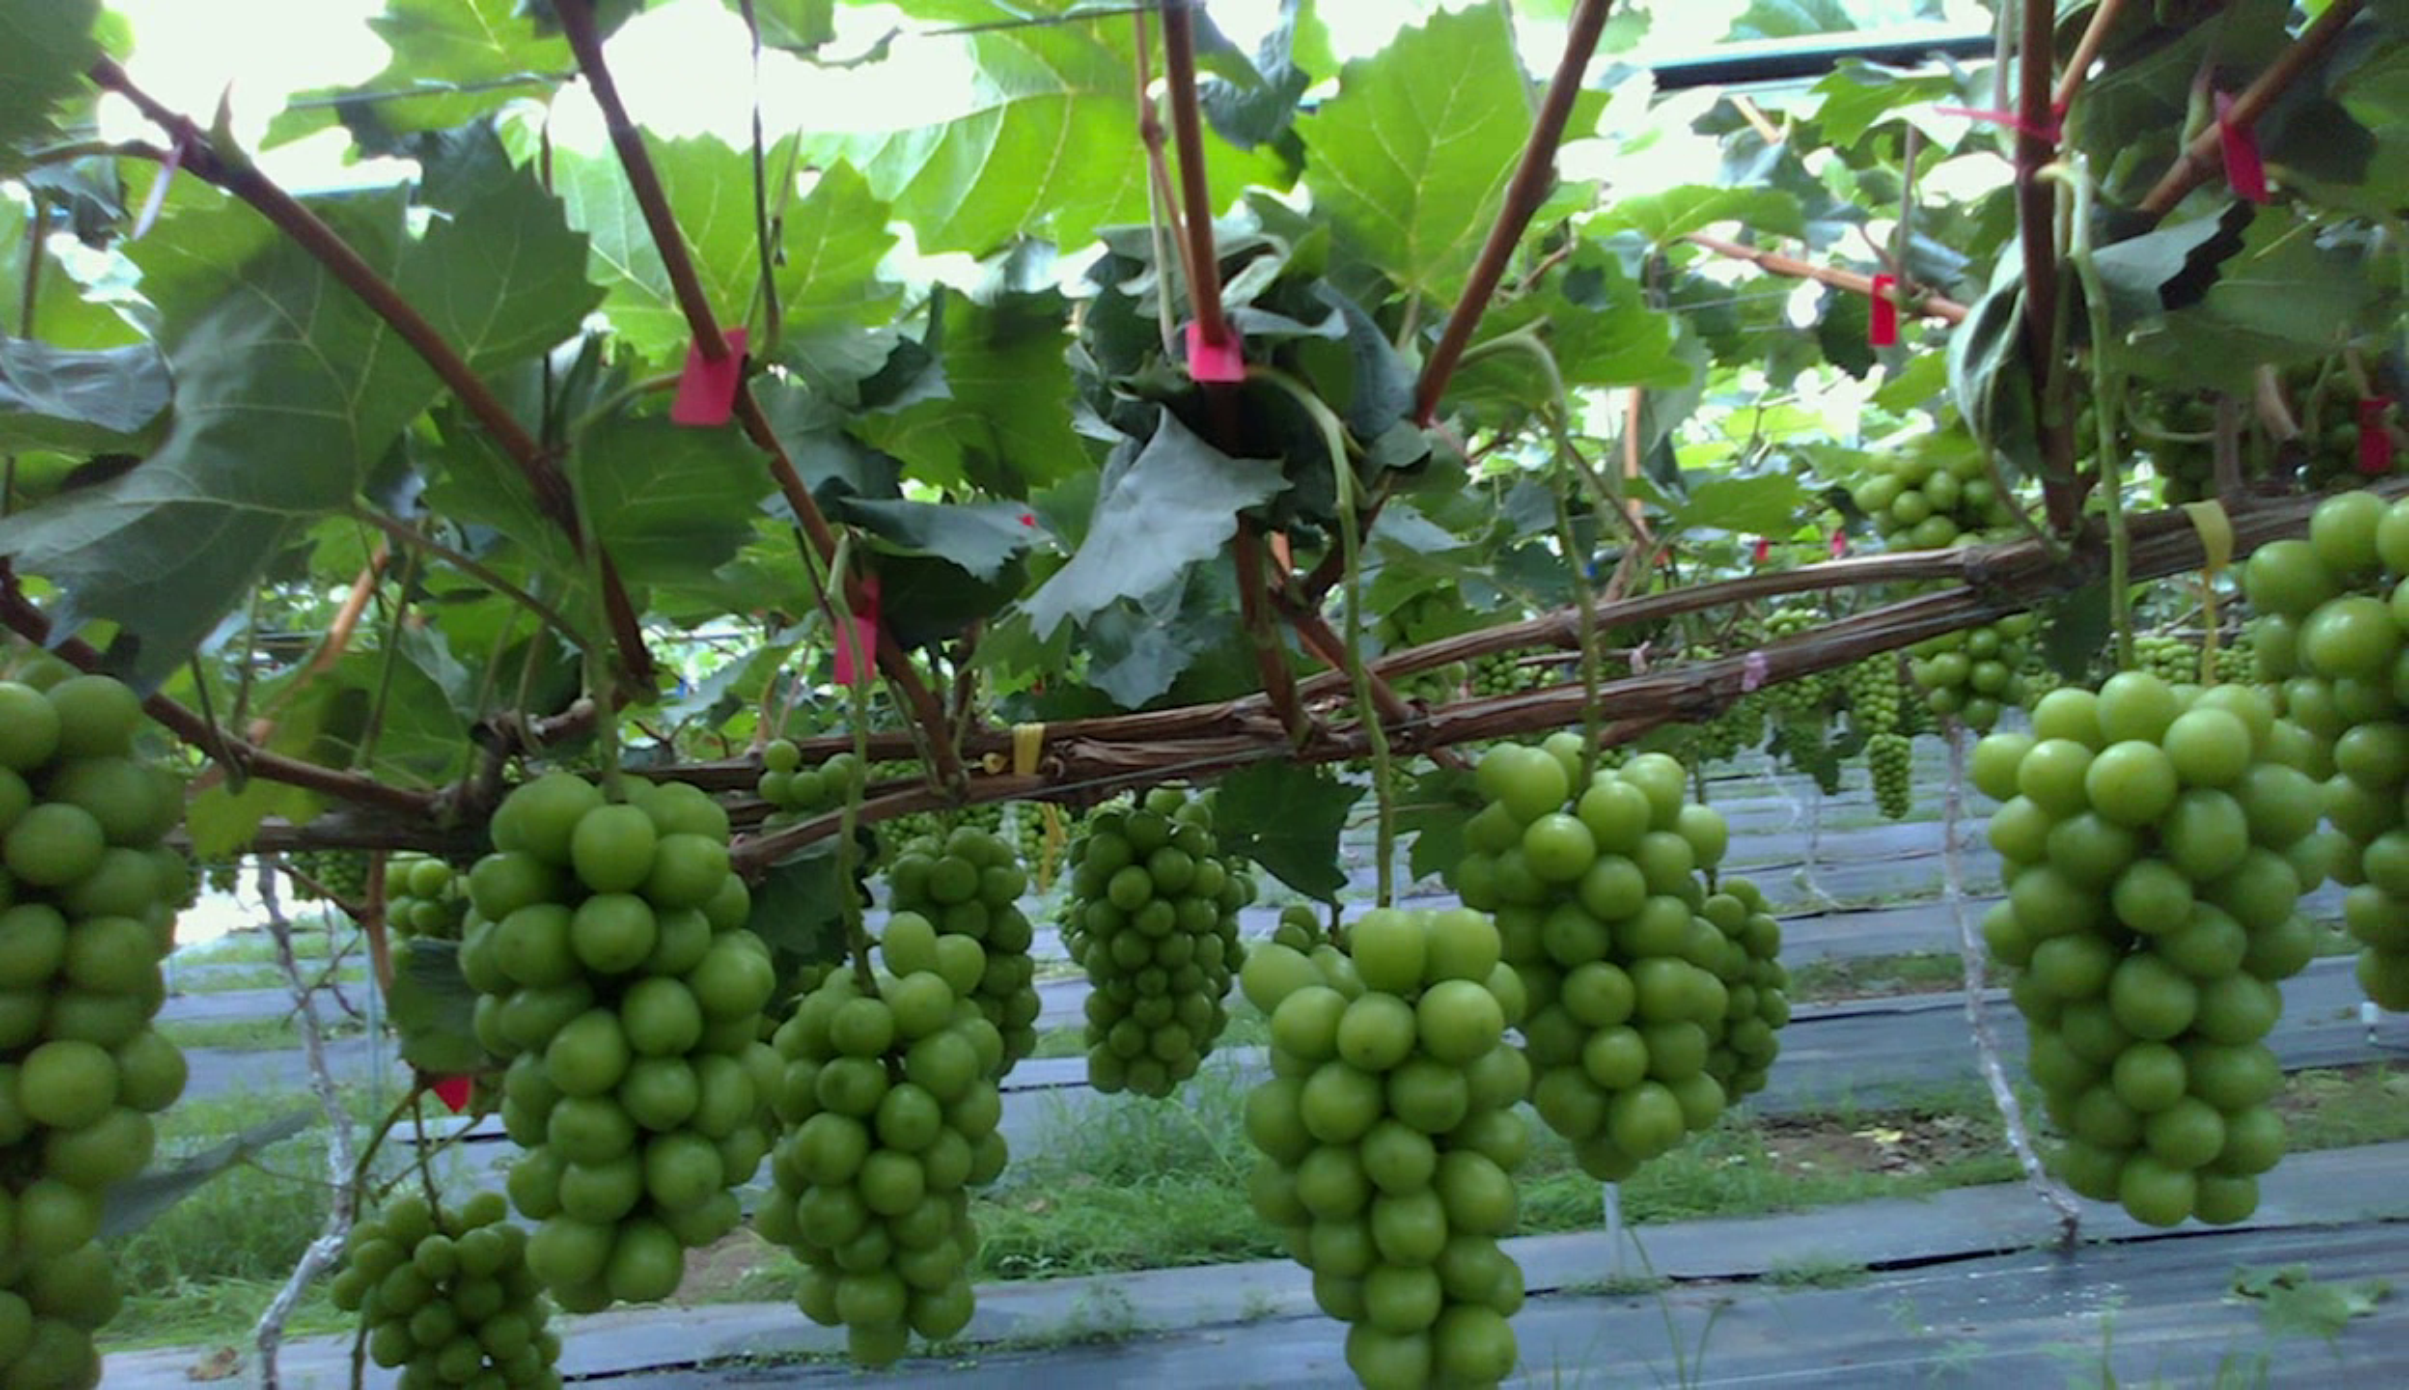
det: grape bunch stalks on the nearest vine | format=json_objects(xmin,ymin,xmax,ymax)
[
  {"xmin": 1475, "ymin": 319, "xmax": 1600, "ymax": 793},
  {"xmin": 824, "ymin": 539, "xmax": 880, "ymax": 996},
  {"xmin": 562, "ymin": 376, "xmax": 672, "ymax": 801},
  {"xmin": 2054, "ymin": 168, "xmax": 2135, "ymax": 666},
  {"xmin": 1278, "ymin": 373, "xmax": 1398, "ymax": 902}
]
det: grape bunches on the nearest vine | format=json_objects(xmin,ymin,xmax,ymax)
[
  {"xmin": 2251, "ymin": 488, "xmax": 2407, "ymax": 1010},
  {"xmin": 1452, "ymin": 730, "xmax": 1728, "ymax": 1181},
  {"xmin": 759, "ymin": 911, "xmax": 1004, "ymax": 1369},
  {"xmin": 1971, "ymin": 674, "xmax": 2332, "ymax": 1232},
  {"xmin": 454, "ymin": 774, "xmax": 780, "ymax": 1320},
  {"xmin": 0, "ymin": 660, "xmax": 185, "ymax": 1290},
  {"xmin": 1239, "ymin": 907, "xmax": 1531, "ymax": 1388}
]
